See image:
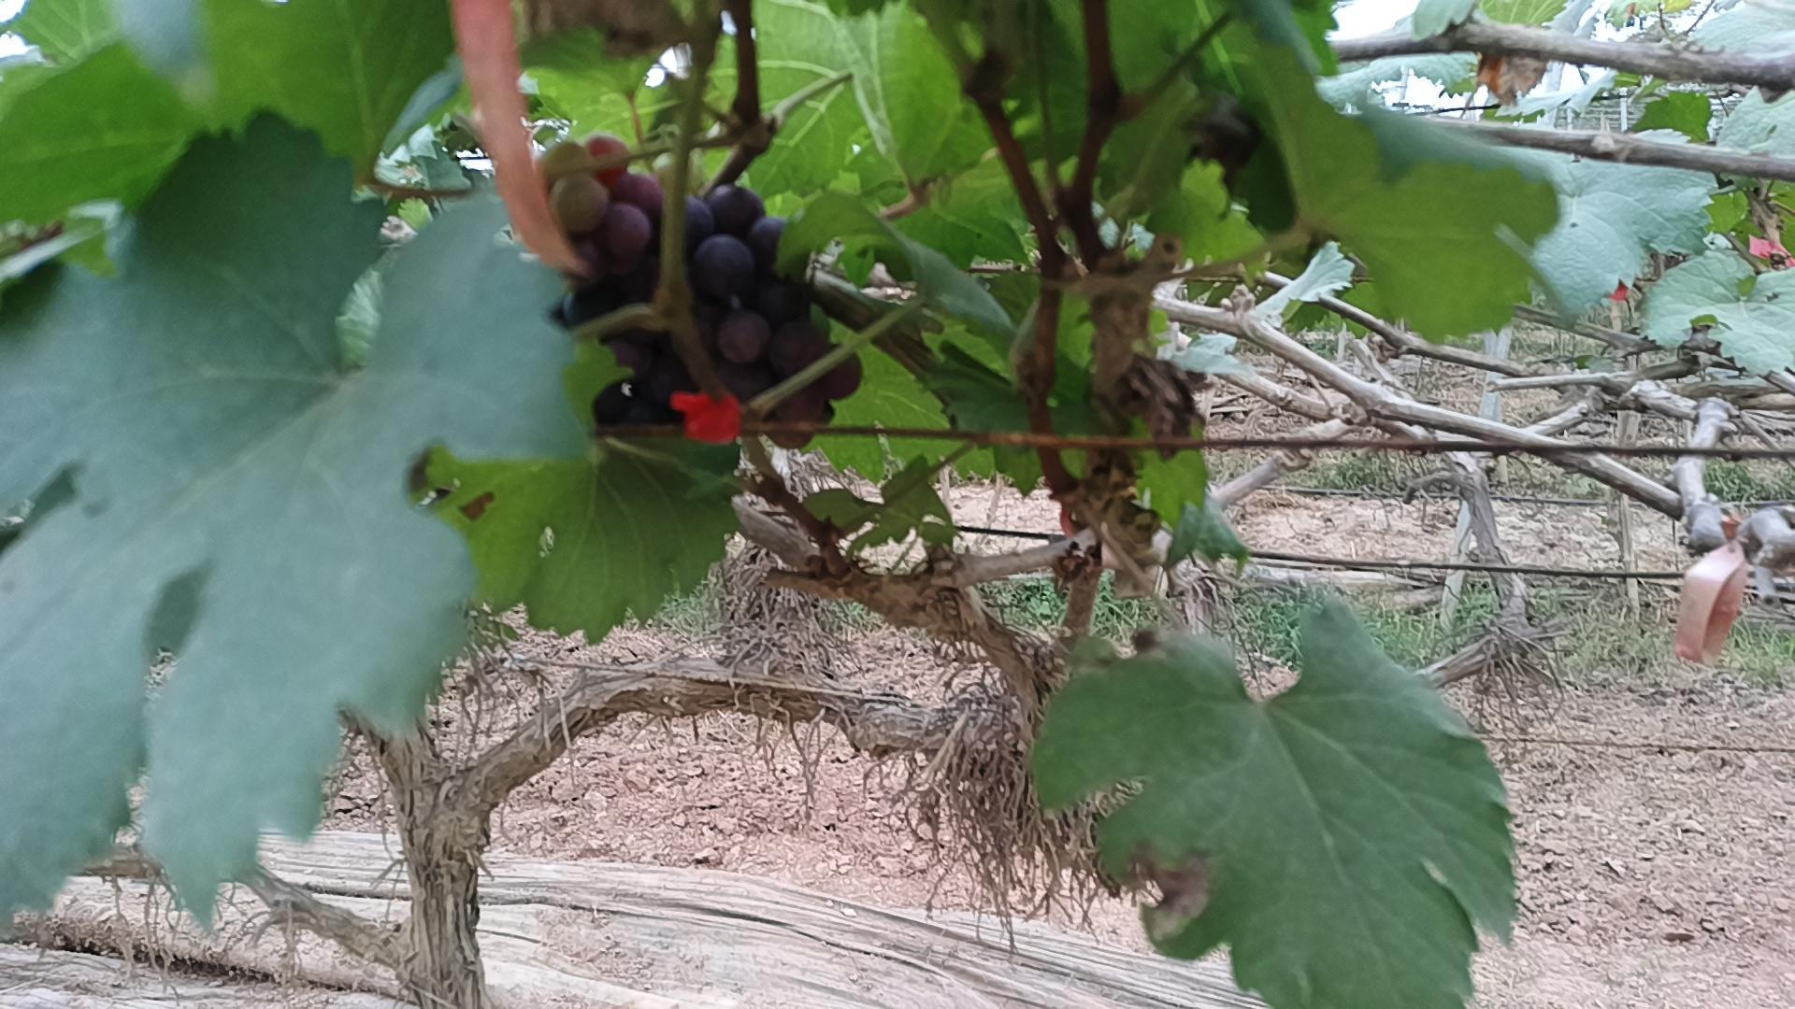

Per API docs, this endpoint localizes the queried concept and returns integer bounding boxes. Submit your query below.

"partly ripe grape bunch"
[536,135,867,448]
